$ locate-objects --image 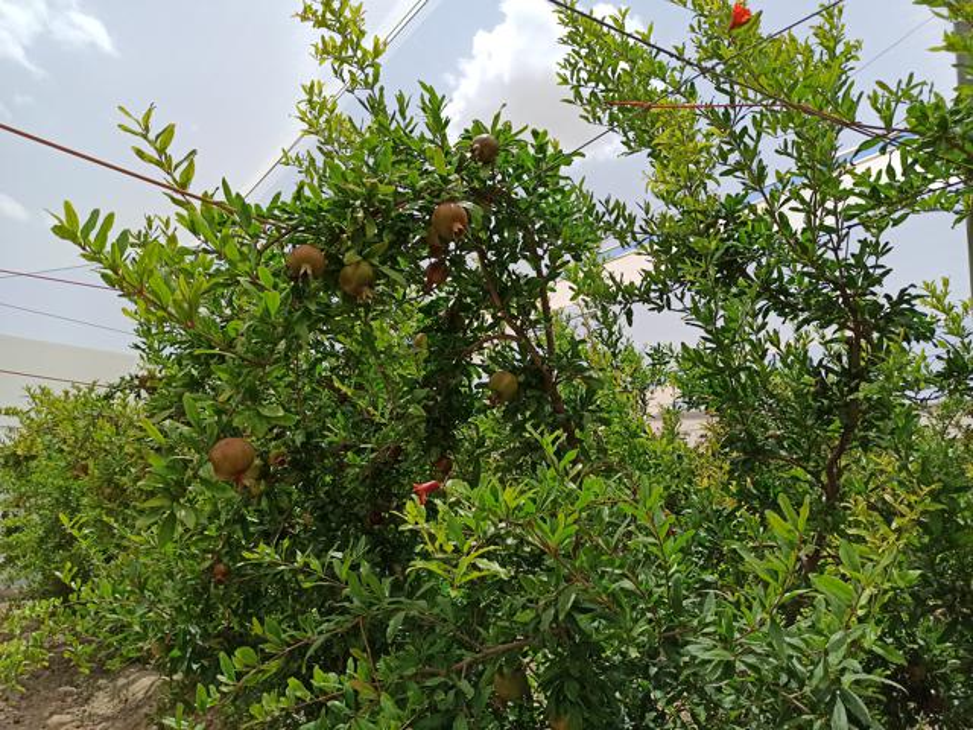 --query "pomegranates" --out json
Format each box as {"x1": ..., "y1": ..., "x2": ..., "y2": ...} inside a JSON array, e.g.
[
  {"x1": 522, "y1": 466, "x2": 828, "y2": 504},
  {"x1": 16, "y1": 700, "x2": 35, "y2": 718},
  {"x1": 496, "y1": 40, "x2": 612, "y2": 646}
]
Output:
[
  {"x1": 486, "y1": 370, "x2": 520, "y2": 408},
  {"x1": 468, "y1": 132, "x2": 499, "y2": 161},
  {"x1": 549, "y1": 718, "x2": 567, "y2": 730},
  {"x1": 211, "y1": 563, "x2": 230, "y2": 586},
  {"x1": 424, "y1": 225, "x2": 447, "y2": 259},
  {"x1": 207, "y1": 436, "x2": 255, "y2": 488},
  {"x1": 491, "y1": 674, "x2": 523, "y2": 710},
  {"x1": 424, "y1": 262, "x2": 447, "y2": 292},
  {"x1": 338, "y1": 260, "x2": 379, "y2": 304},
  {"x1": 289, "y1": 243, "x2": 327, "y2": 281},
  {"x1": 433, "y1": 456, "x2": 453, "y2": 476},
  {"x1": 430, "y1": 201, "x2": 468, "y2": 239}
]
